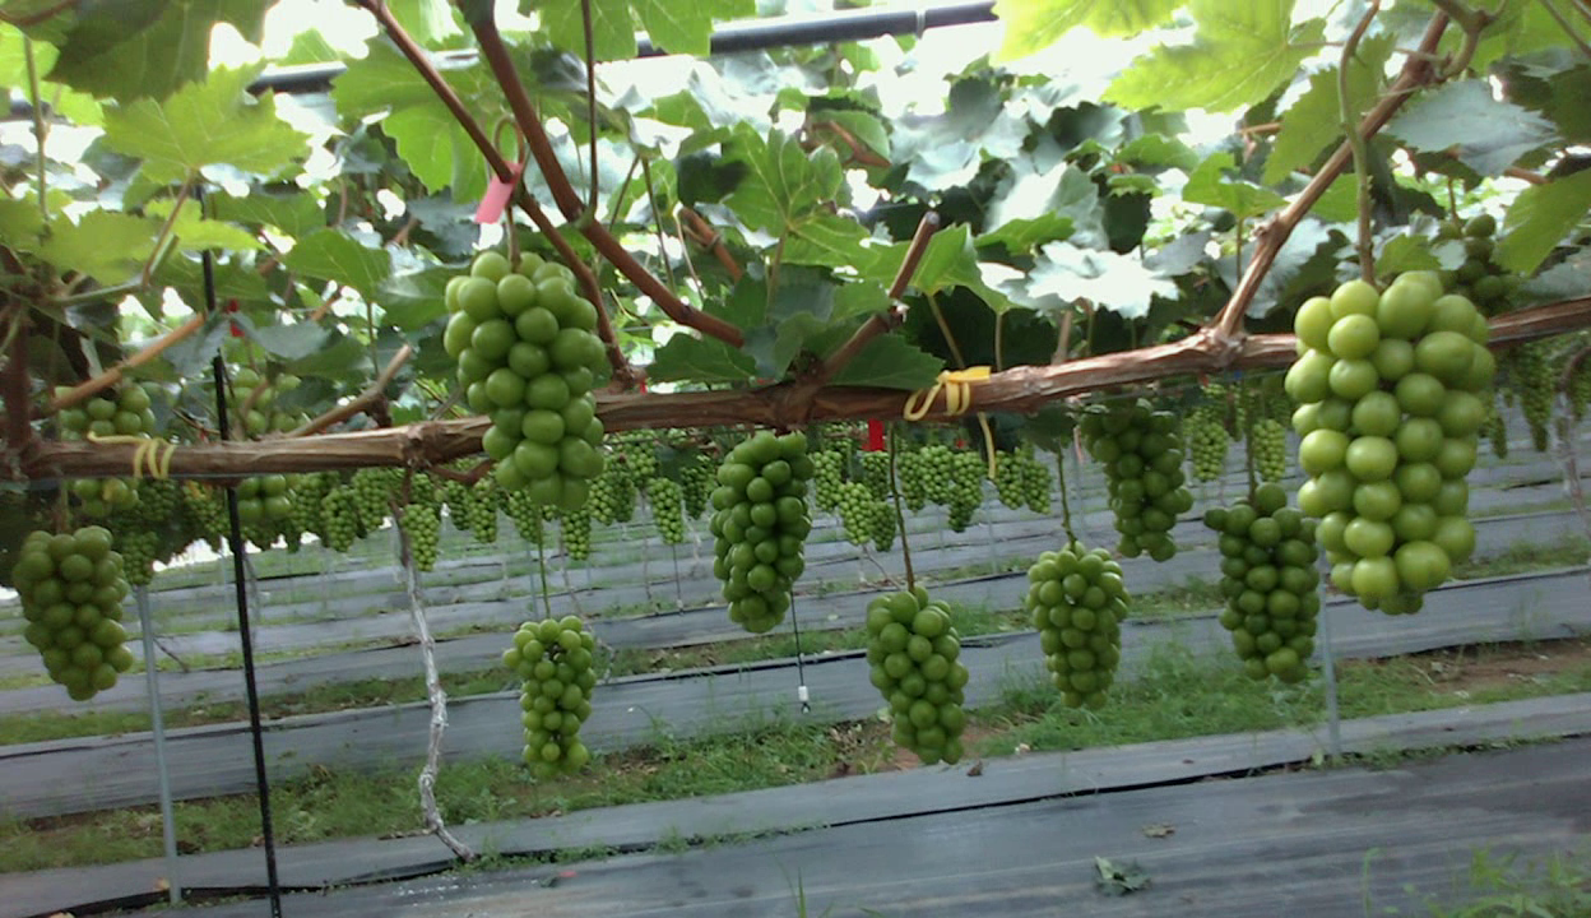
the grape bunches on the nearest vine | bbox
[444,251,608,513]
[1282,269,1495,615]
[11,525,133,701]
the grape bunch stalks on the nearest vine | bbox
[52,414,70,533]
[496,115,524,273]
[1337,3,1382,297]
